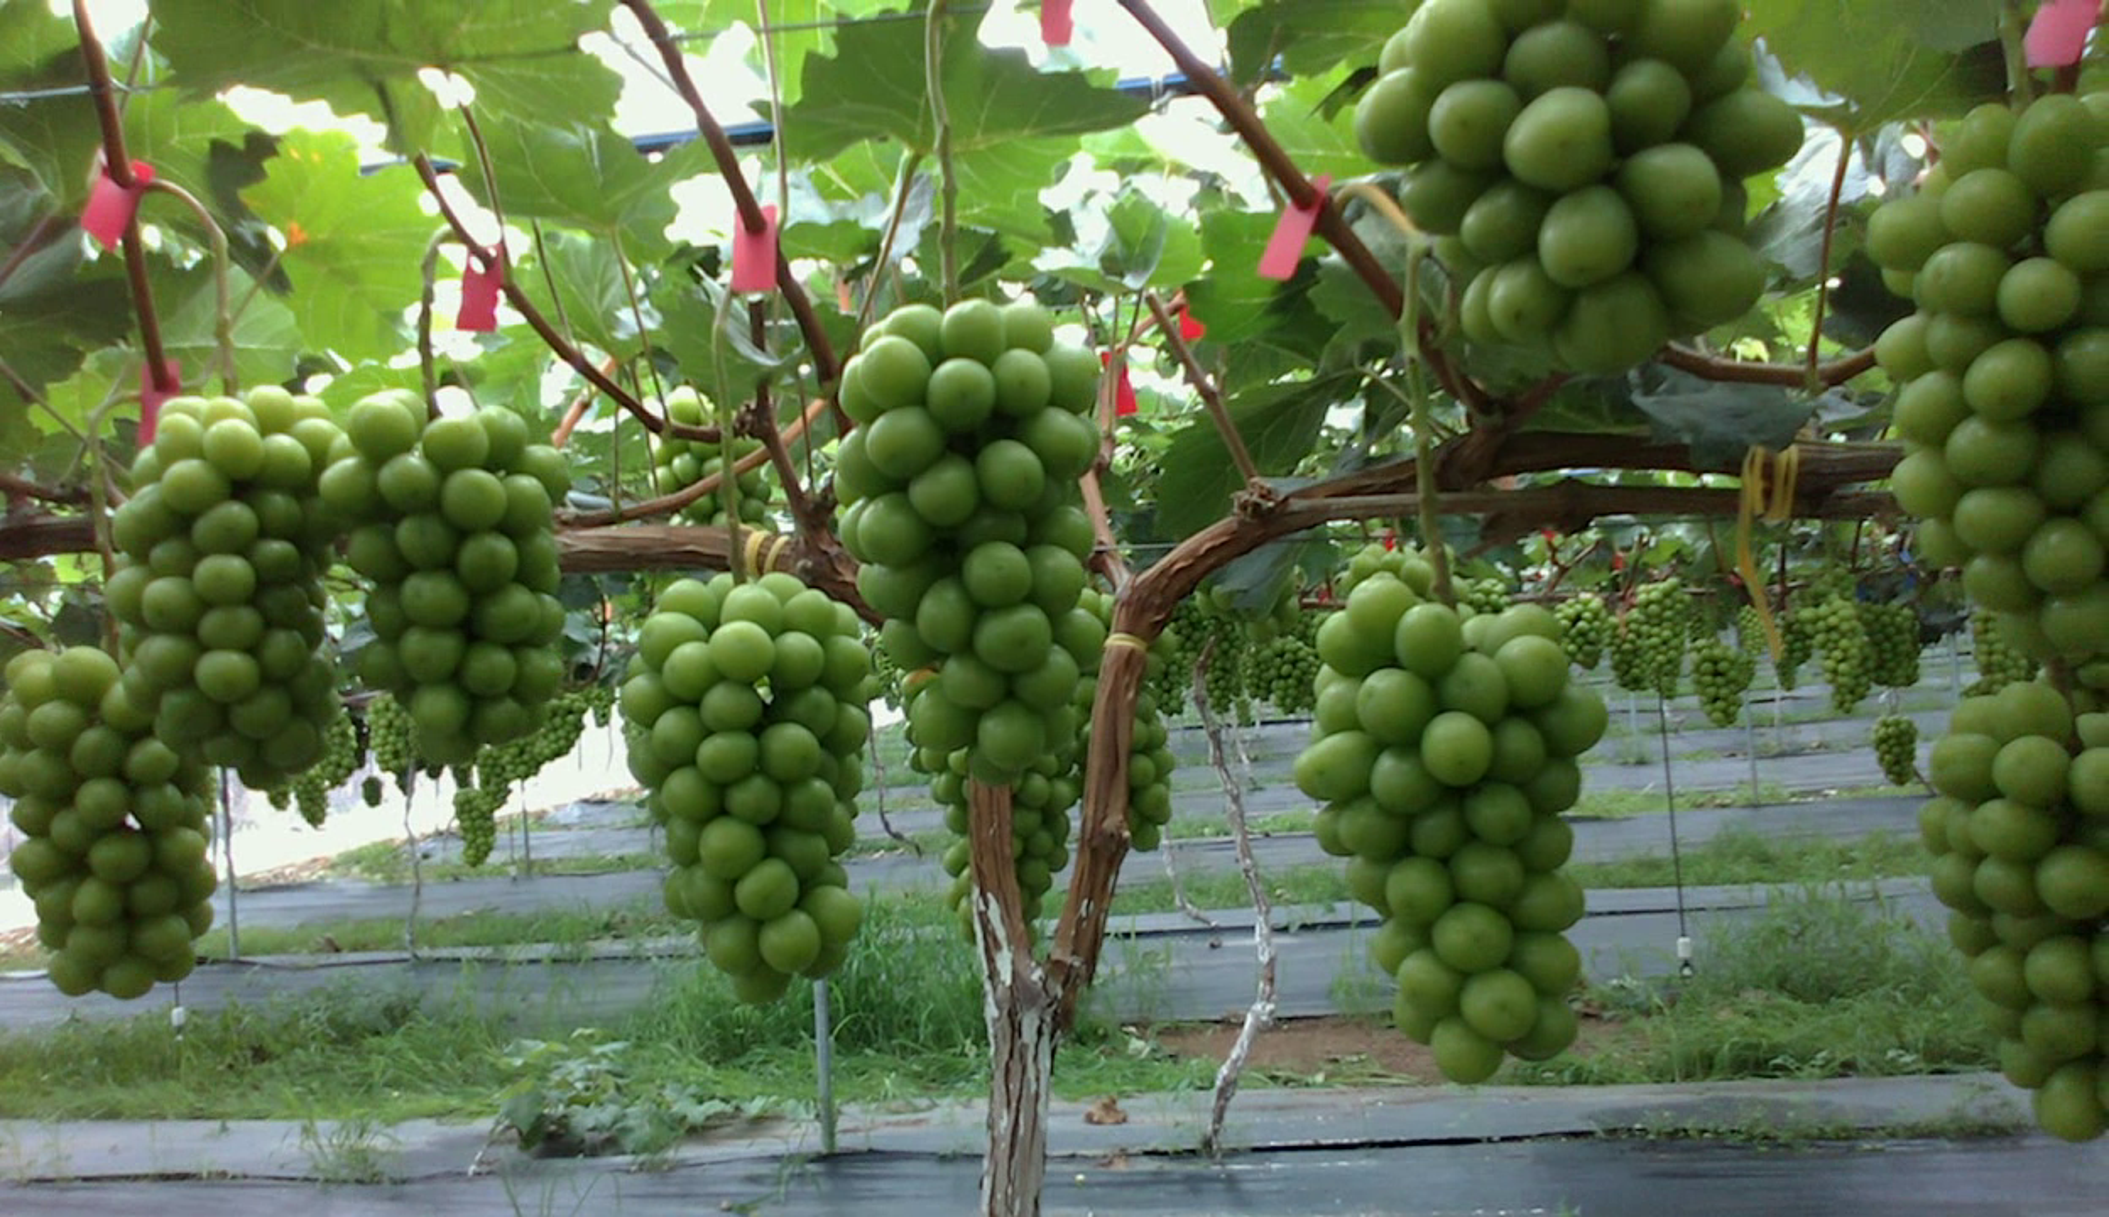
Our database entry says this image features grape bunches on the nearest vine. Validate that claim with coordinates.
[1862,93,2107,659]
[624,571,869,1001]
[1288,578,1614,1083]
[1343,0,1808,387]
[830,299,1098,781]
[319,397,568,762]
[0,647,218,999]
[110,382,341,794]
[1920,678,2107,1141]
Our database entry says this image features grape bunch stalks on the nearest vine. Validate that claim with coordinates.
[923,2,960,306]
[1398,242,1452,603]
[417,225,458,419]
[88,392,137,658]
[154,181,237,392]
[711,291,745,581]
[1999,7,2030,101]
[2052,663,2082,750]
